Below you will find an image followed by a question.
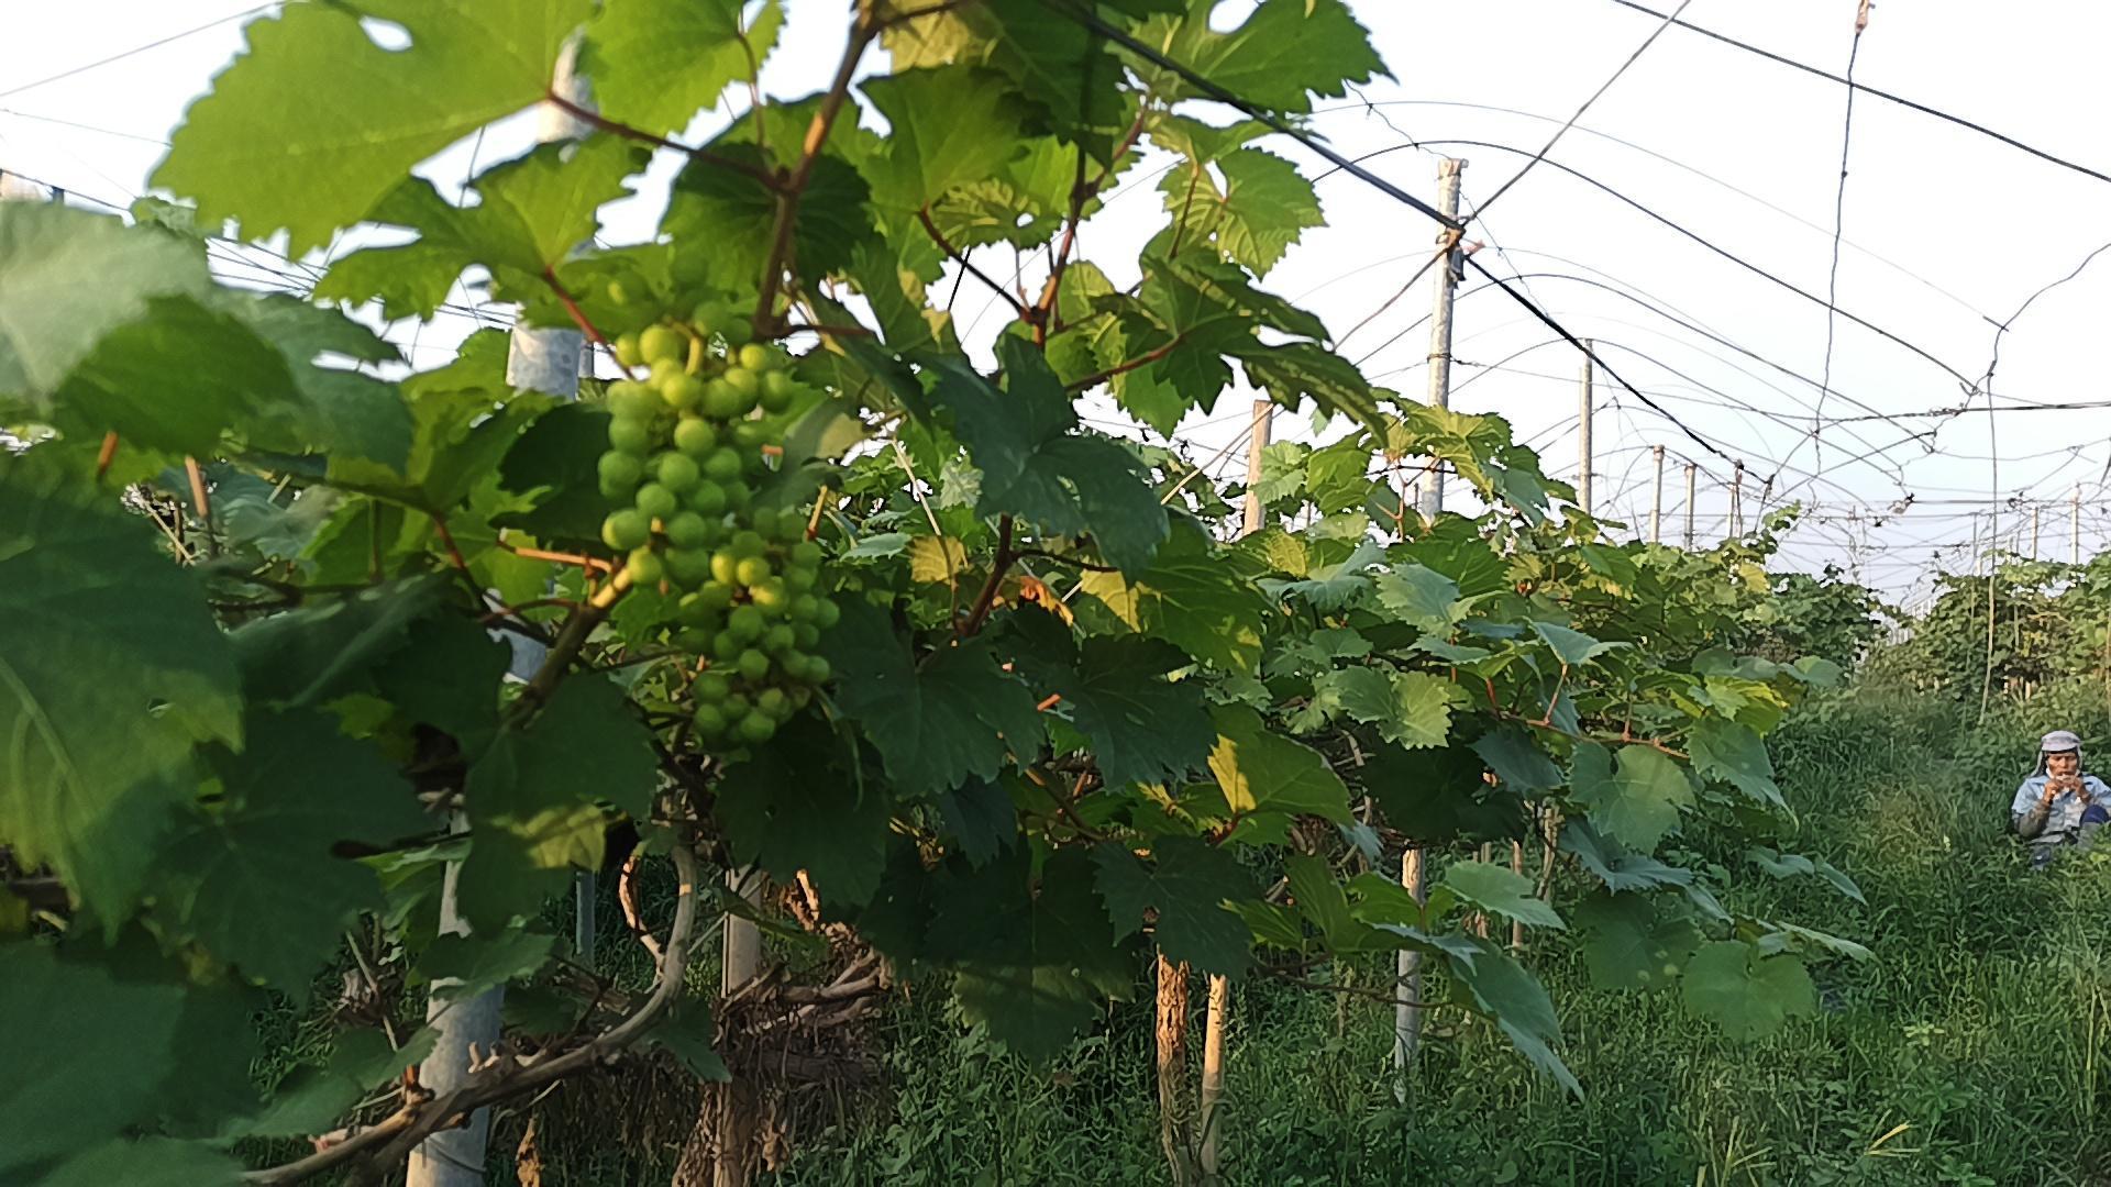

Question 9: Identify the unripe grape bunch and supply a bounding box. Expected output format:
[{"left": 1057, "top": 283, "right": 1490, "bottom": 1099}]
[{"left": 598, "top": 253, "right": 836, "bottom": 751}]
